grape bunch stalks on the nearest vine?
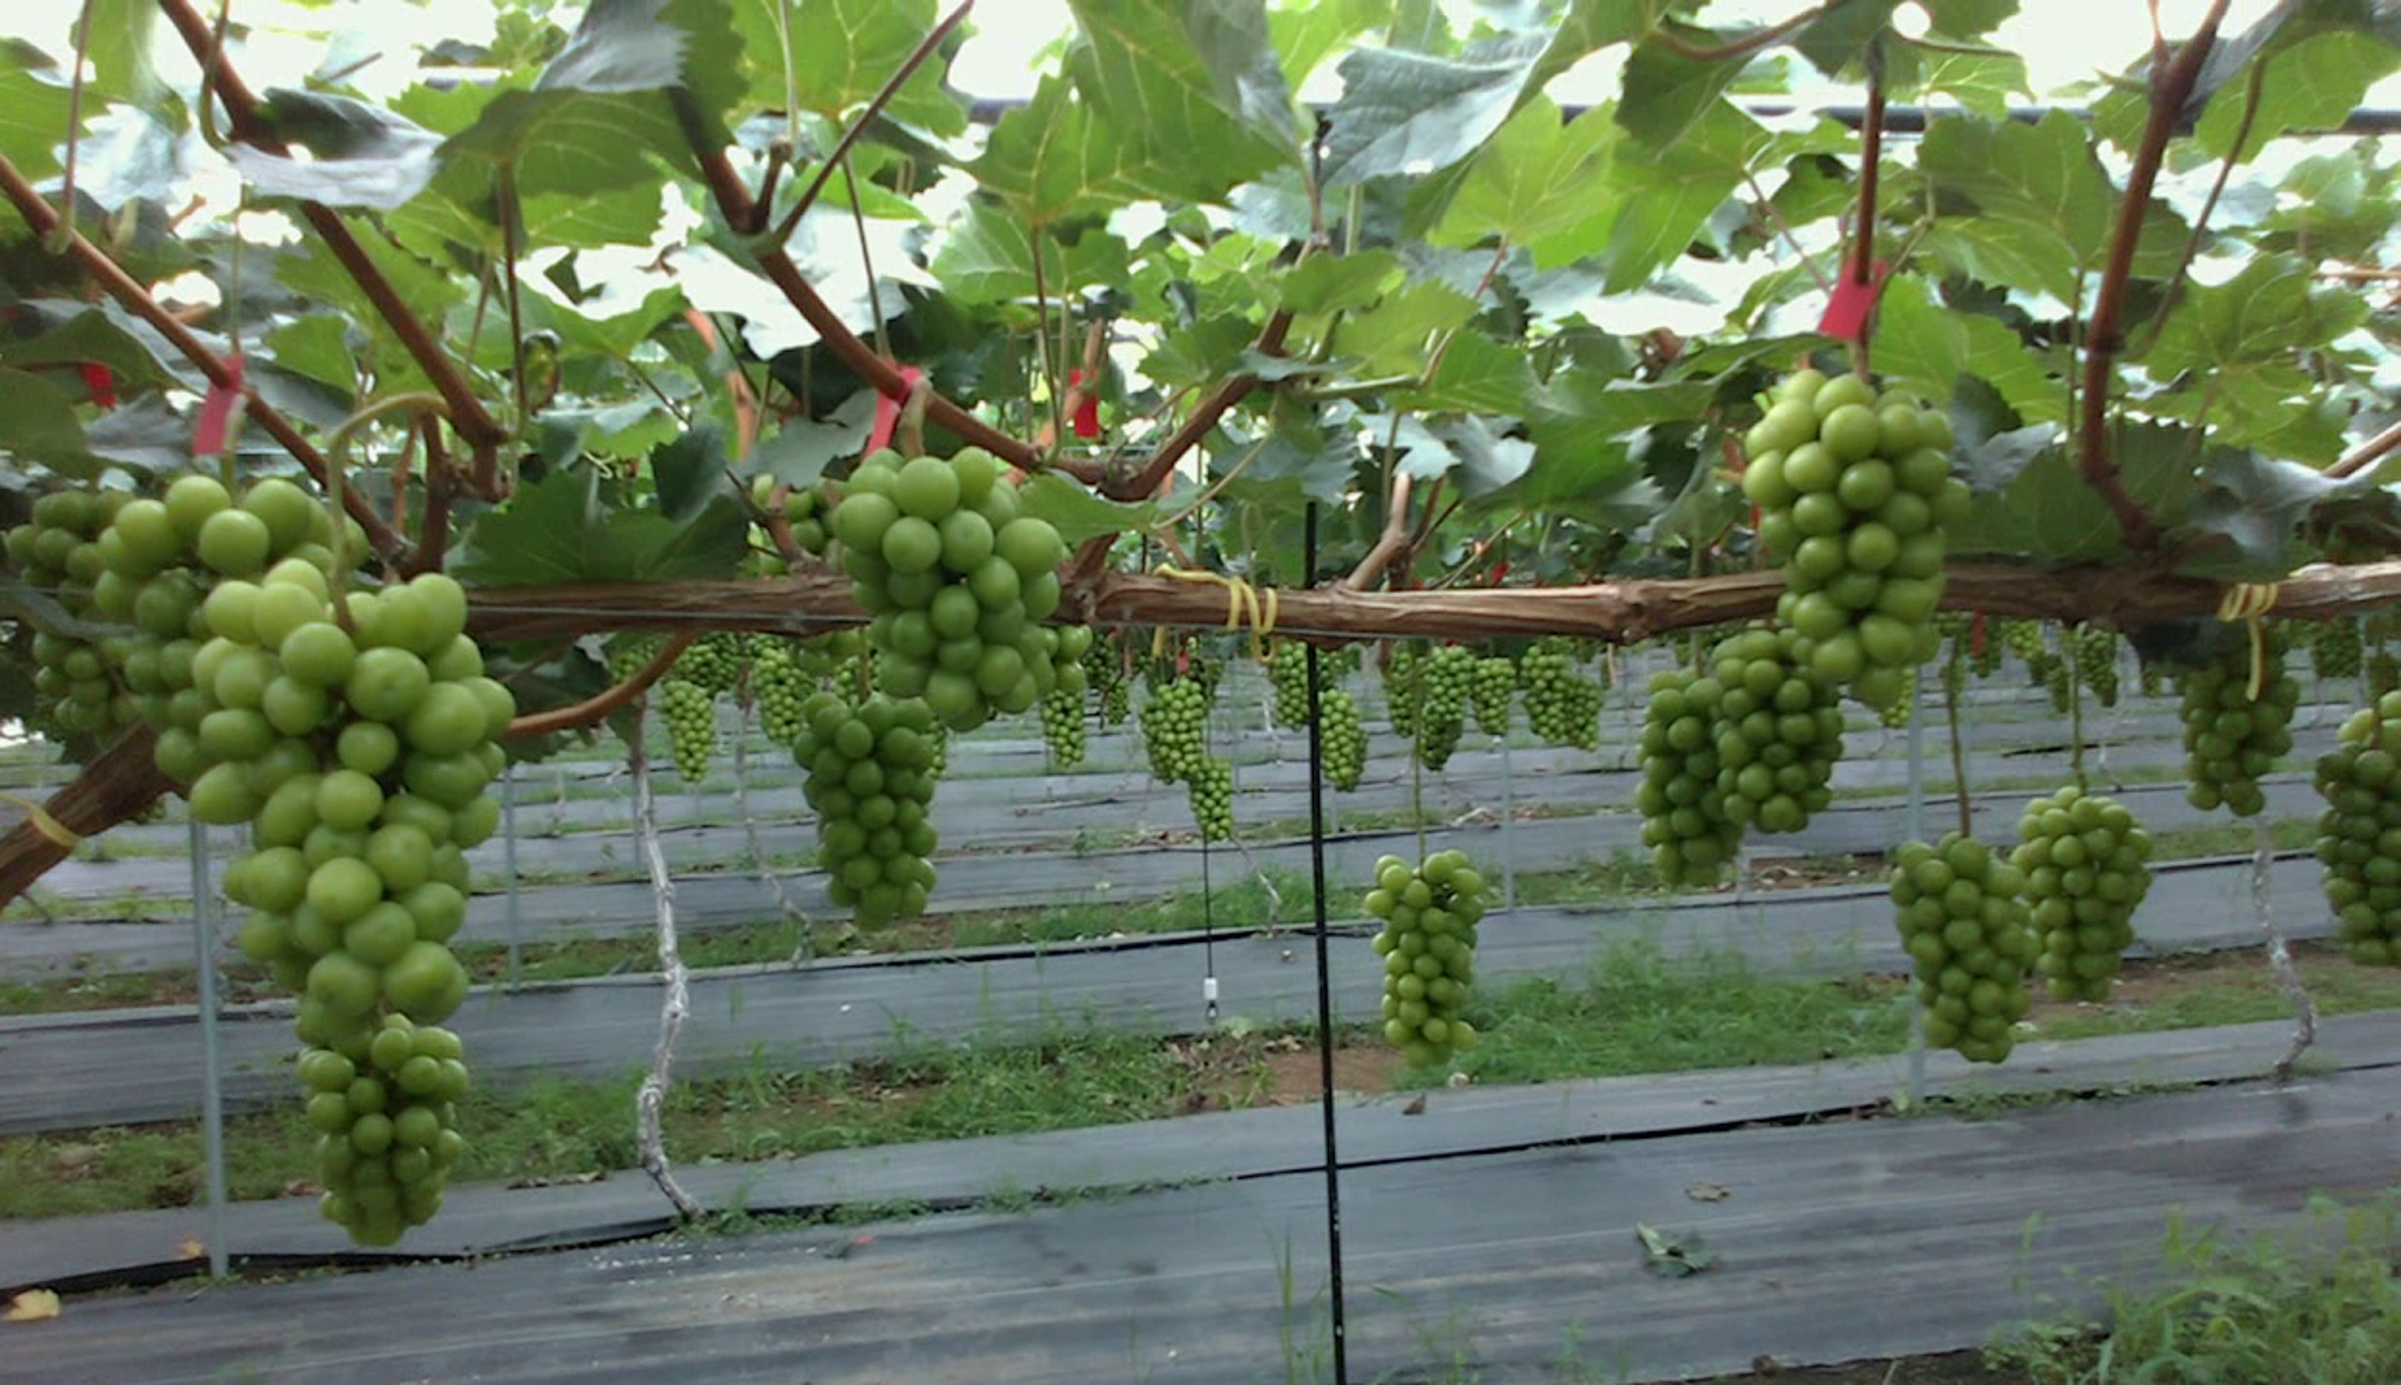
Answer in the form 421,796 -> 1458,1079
327,392 -> 444,633
897,392 -> 923,456
223,396 -> 246,494
1855,337 -> 1870,381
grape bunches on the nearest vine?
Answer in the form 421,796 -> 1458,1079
185,554 -> 516,1043
829,448 -> 1064,729
90,477 -> 329,777
1743,367 -> 1970,712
